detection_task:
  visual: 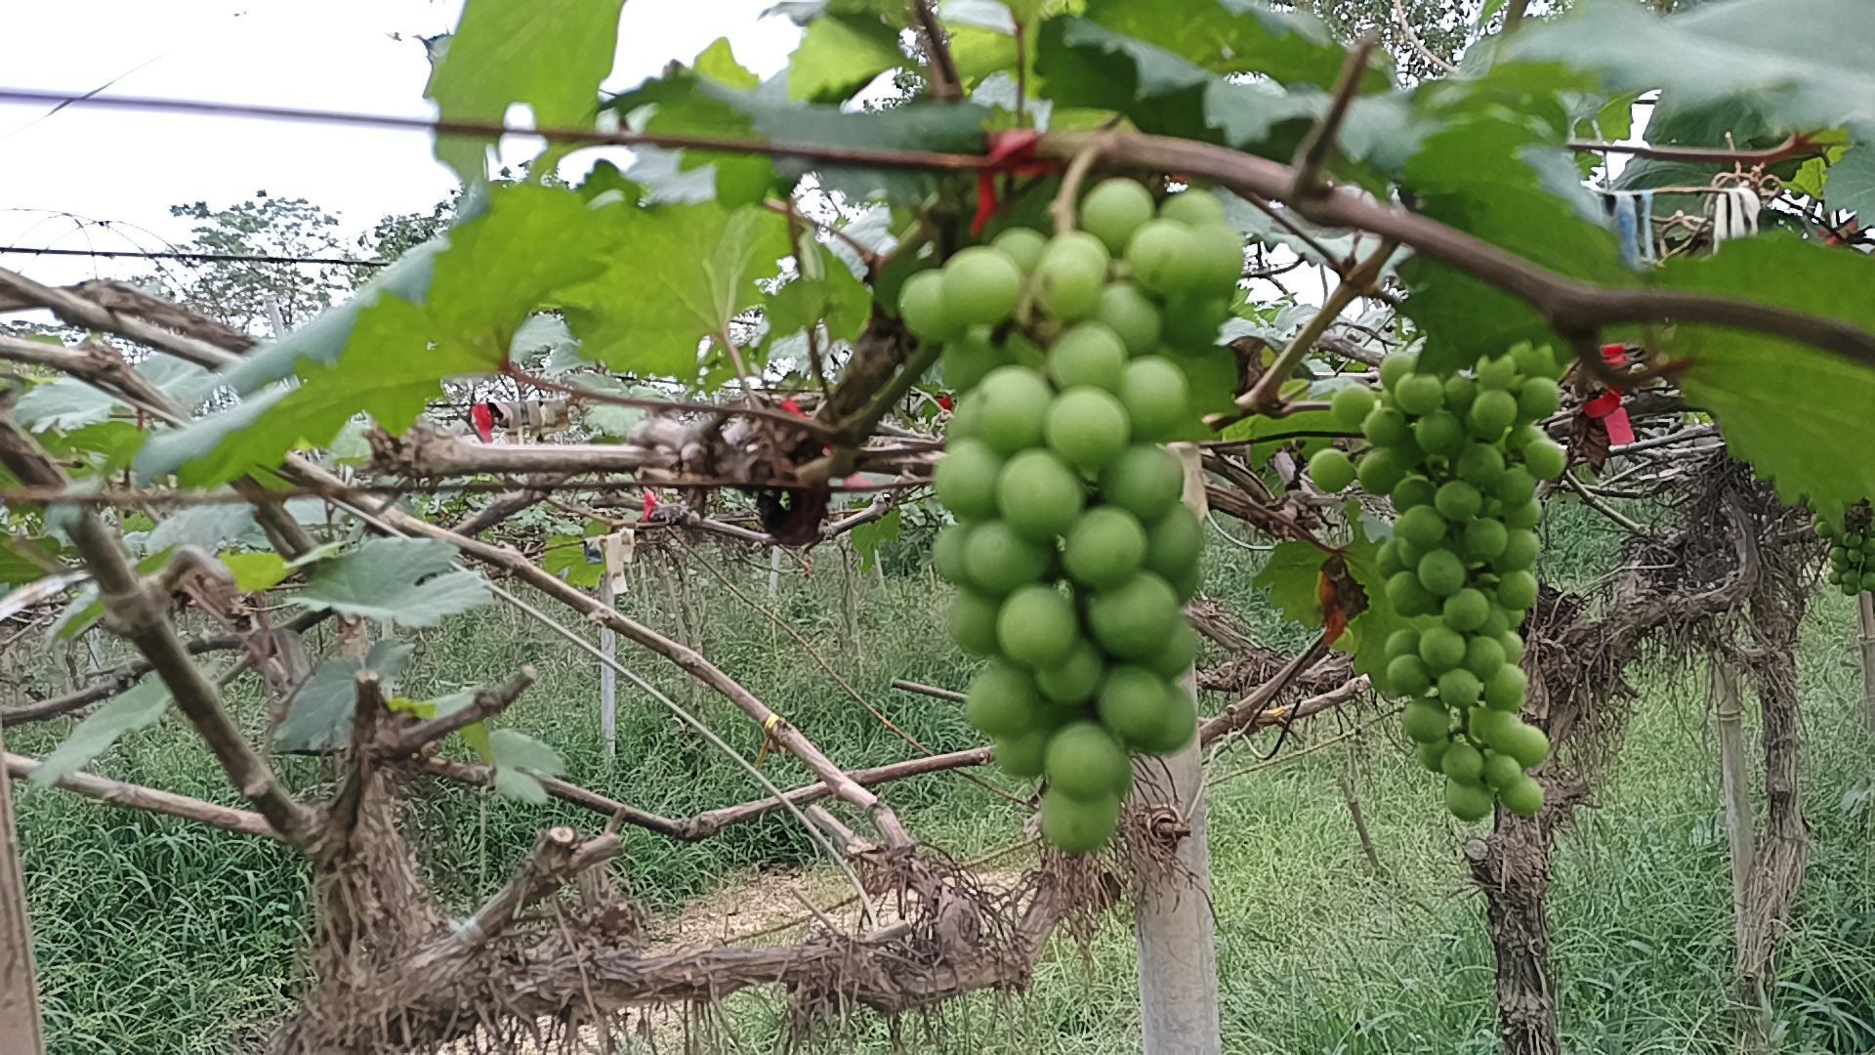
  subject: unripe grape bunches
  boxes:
[1810,499,1874,595]
[896,179,1249,855]
[1308,343,1563,821]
